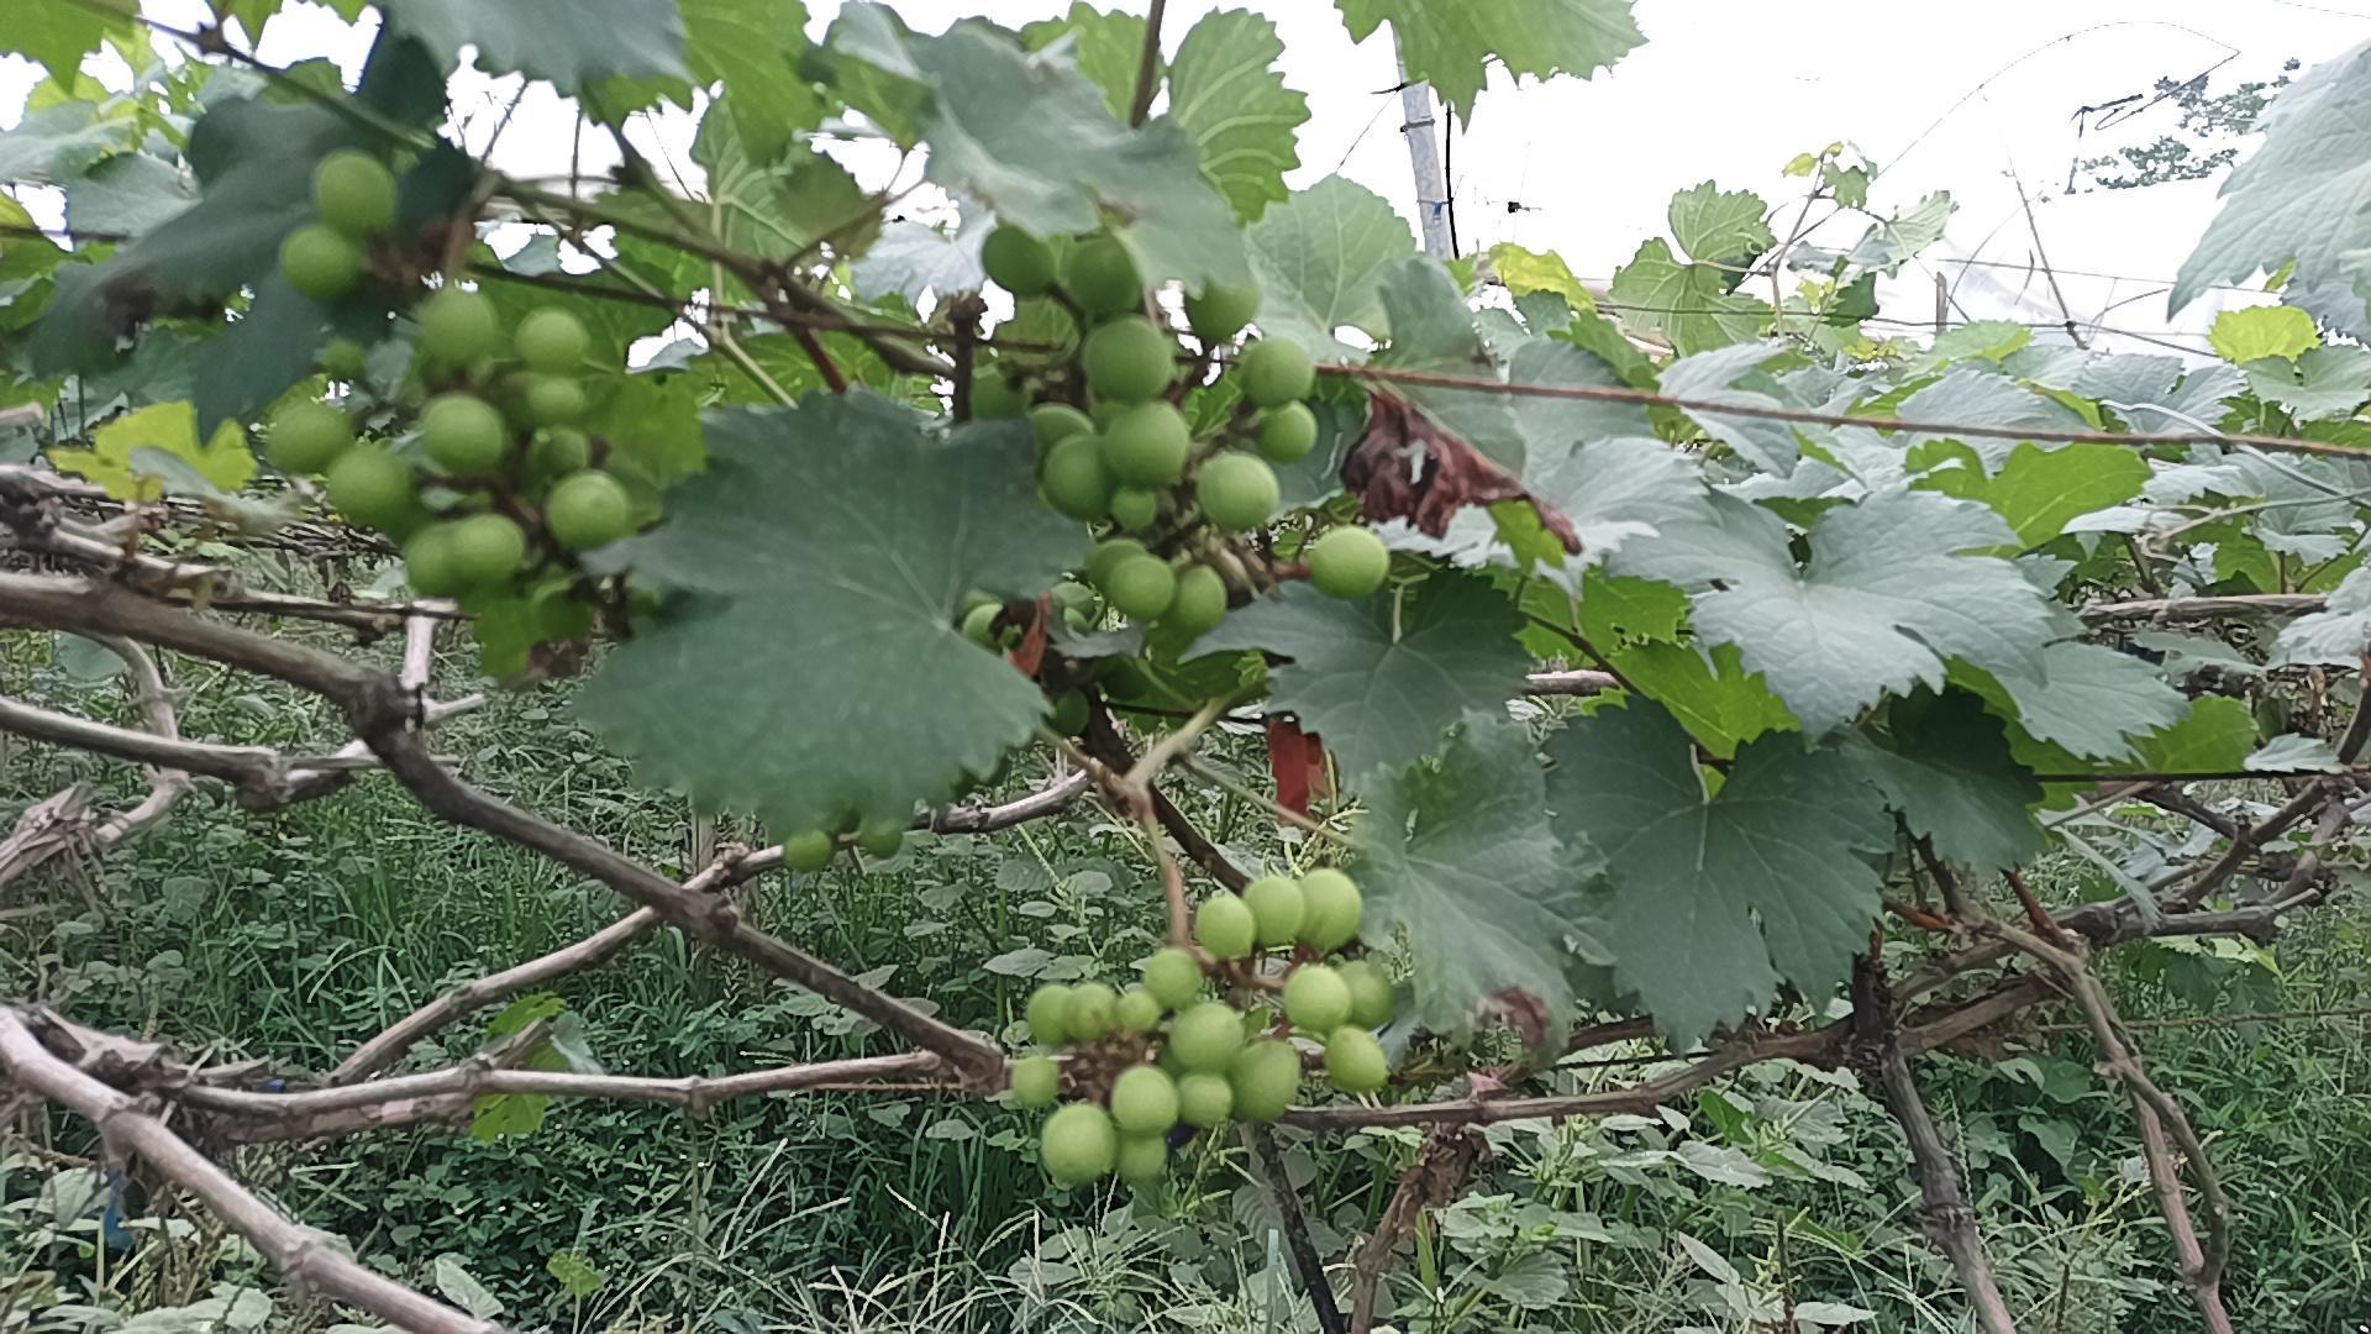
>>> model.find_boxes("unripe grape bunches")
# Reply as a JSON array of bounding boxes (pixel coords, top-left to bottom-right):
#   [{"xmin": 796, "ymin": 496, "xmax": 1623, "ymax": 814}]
[
  {"xmin": 778, "ymin": 809, "xmax": 906, "ymax": 875},
  {"xmin": 963, "ymin": 224, "xmax": 1389, "ymax": 645},
  {"xmin": 266, "ymin": 151, "xmax": 634, "ymax": 598},
  {"xmin": 1011, "ymin": 867, "xmax": 1395, "ymax": 1183},
  {"xmin": 966, "ymin": 583, "xmax": 1156, "ymax": 740}
]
